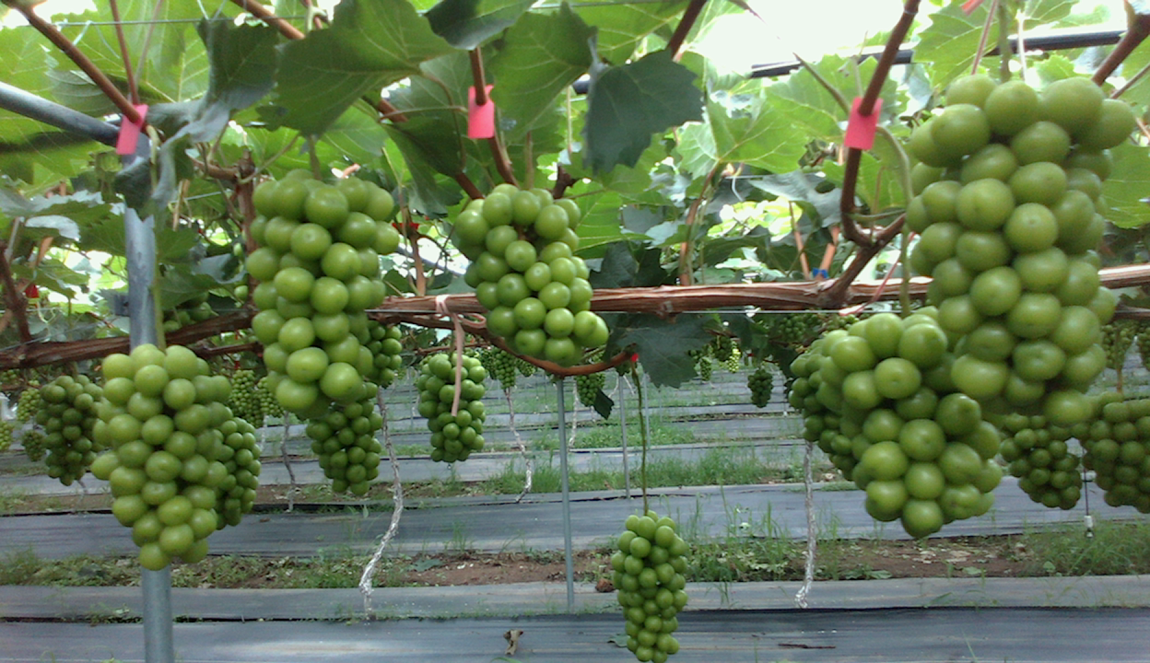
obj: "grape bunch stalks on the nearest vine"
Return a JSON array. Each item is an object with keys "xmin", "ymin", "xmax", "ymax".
[
  {"xmin": 525, "ymin": 132, "xmax": 534, "ymax": 192},
  {"xmin": 875, "ymin": 124, "xmax": 911, "ymax": 320},
  {"xmin": 999, "ymin": 1, "xmax": 1009, "ymax": 85},
  {"xmin": 146, "ymin": 125, "xmax": 167, "ymax": 356}
]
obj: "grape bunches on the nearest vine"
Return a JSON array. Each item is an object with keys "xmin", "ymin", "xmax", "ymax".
[
  {"xmin": 246, "ymin": 168, "xmax": 400, "ymax": 413},
  {"xmin": 903, "ymin": 74, "xmax": 1134, "ymax": 427},
  {"xmin": 455, "ymin": 183, "xmax": 609, "ymax": 368},
  {"xmin": 91, "ymin": 343, "xmax": 230, "ymax": 572},
  {"xmin": 816, "ymin": 307, "xmax": 1002, "ymax": 538}
]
